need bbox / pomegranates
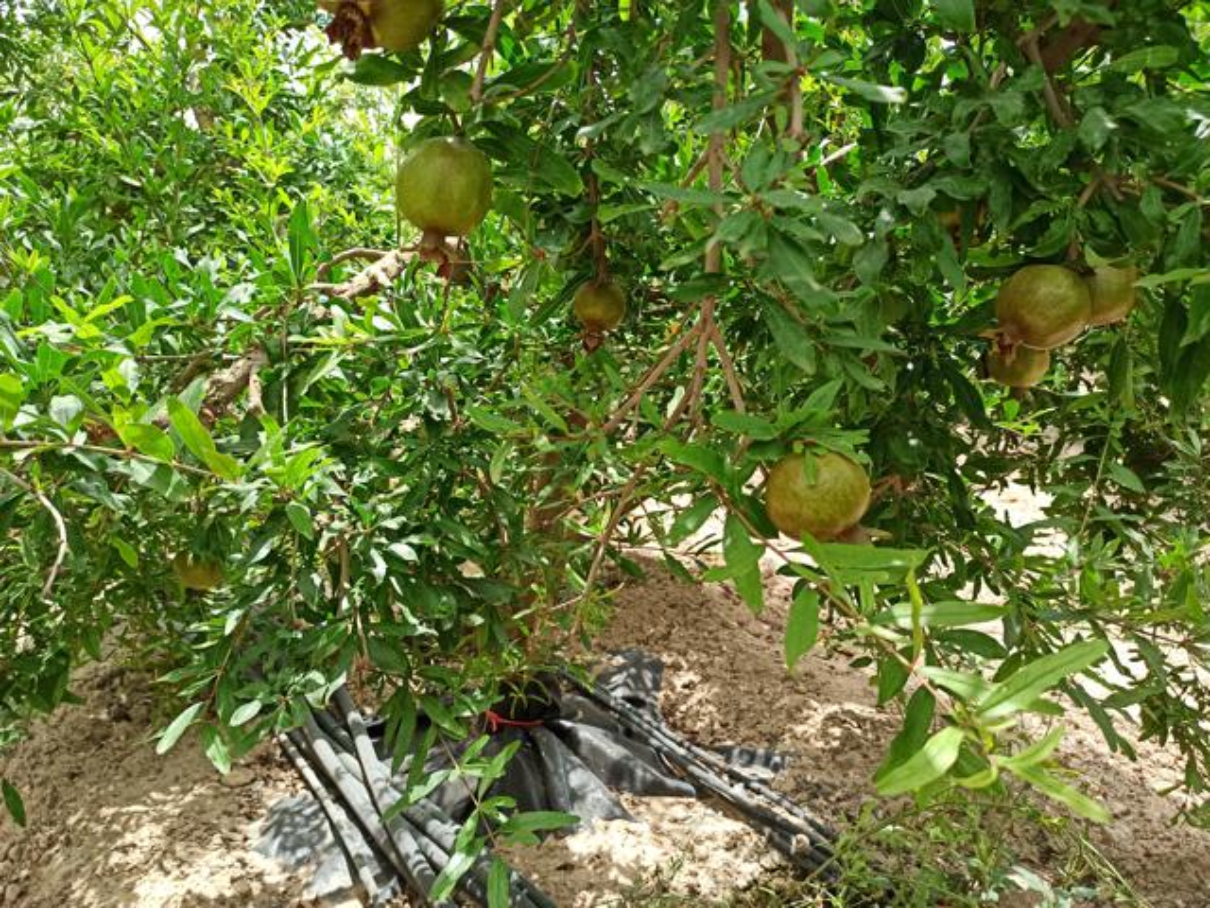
[573,280,626,354]
[314,0,442,64]
[395,136,492,280]
[762,450,894,549]
[985,344,1049,403]
[1080,267,1138,325]
[976,263,1091,371]
[172,552,221,590]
